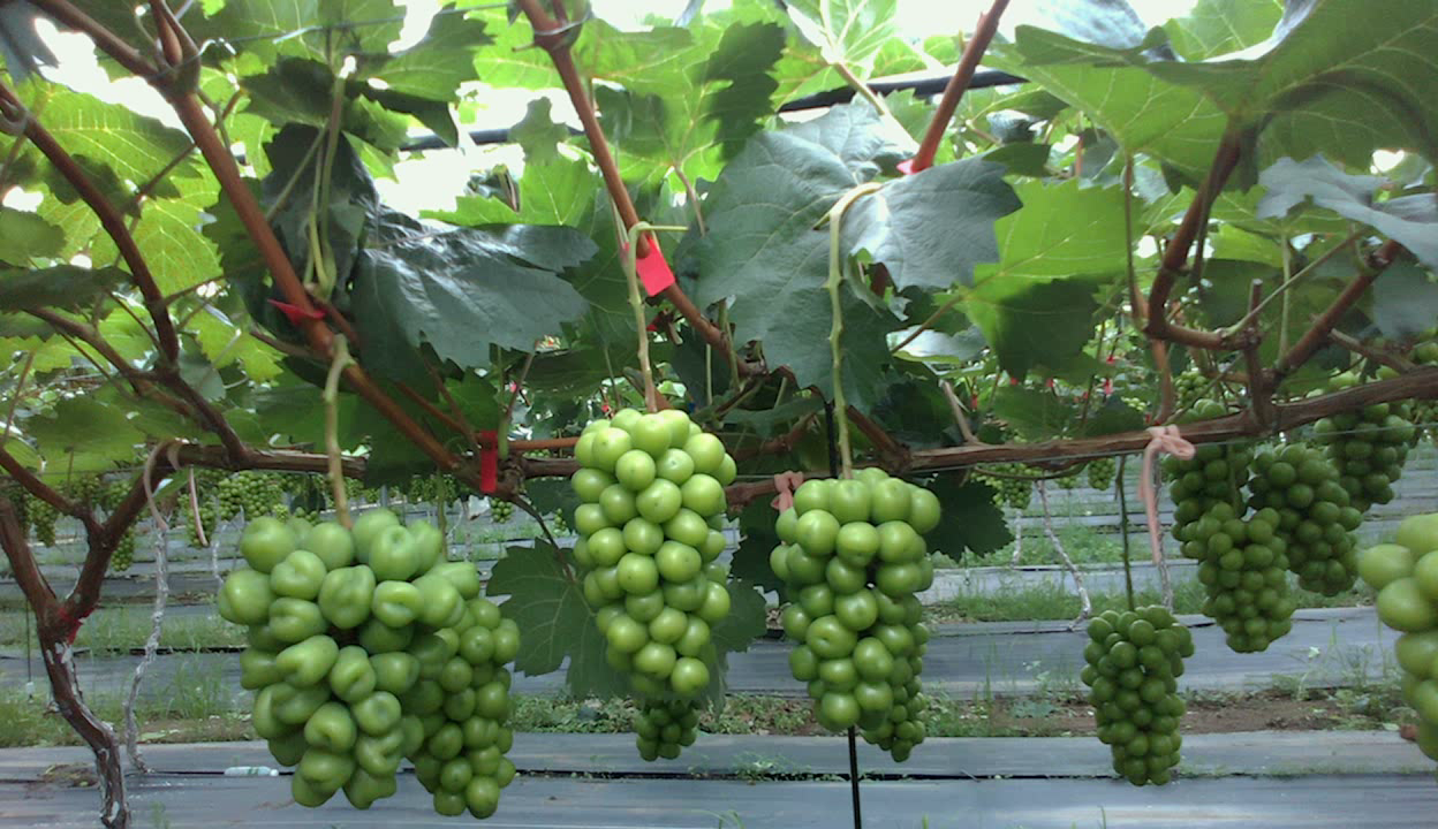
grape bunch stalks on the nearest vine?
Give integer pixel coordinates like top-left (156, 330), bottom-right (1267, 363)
top-left (626, 226), bottom-right (657, 413)
top-left (434, 465), bottom-right (448, 561)
top-left (822, 182), bottom-right (881, 480)
top-left (319, 335), bottom-right (357, 530)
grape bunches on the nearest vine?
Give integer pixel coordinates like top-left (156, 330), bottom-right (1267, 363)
top-left (214, 508), bottom-right (479, 812)
top-left (1358, 515), bottom-right (1436, 760)
top-left (572, 408), bottom-right (737, 698)
top-left (401, 595), bottom-right (521, 821)
top-left (770, 466), bottom-right (940, 745)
